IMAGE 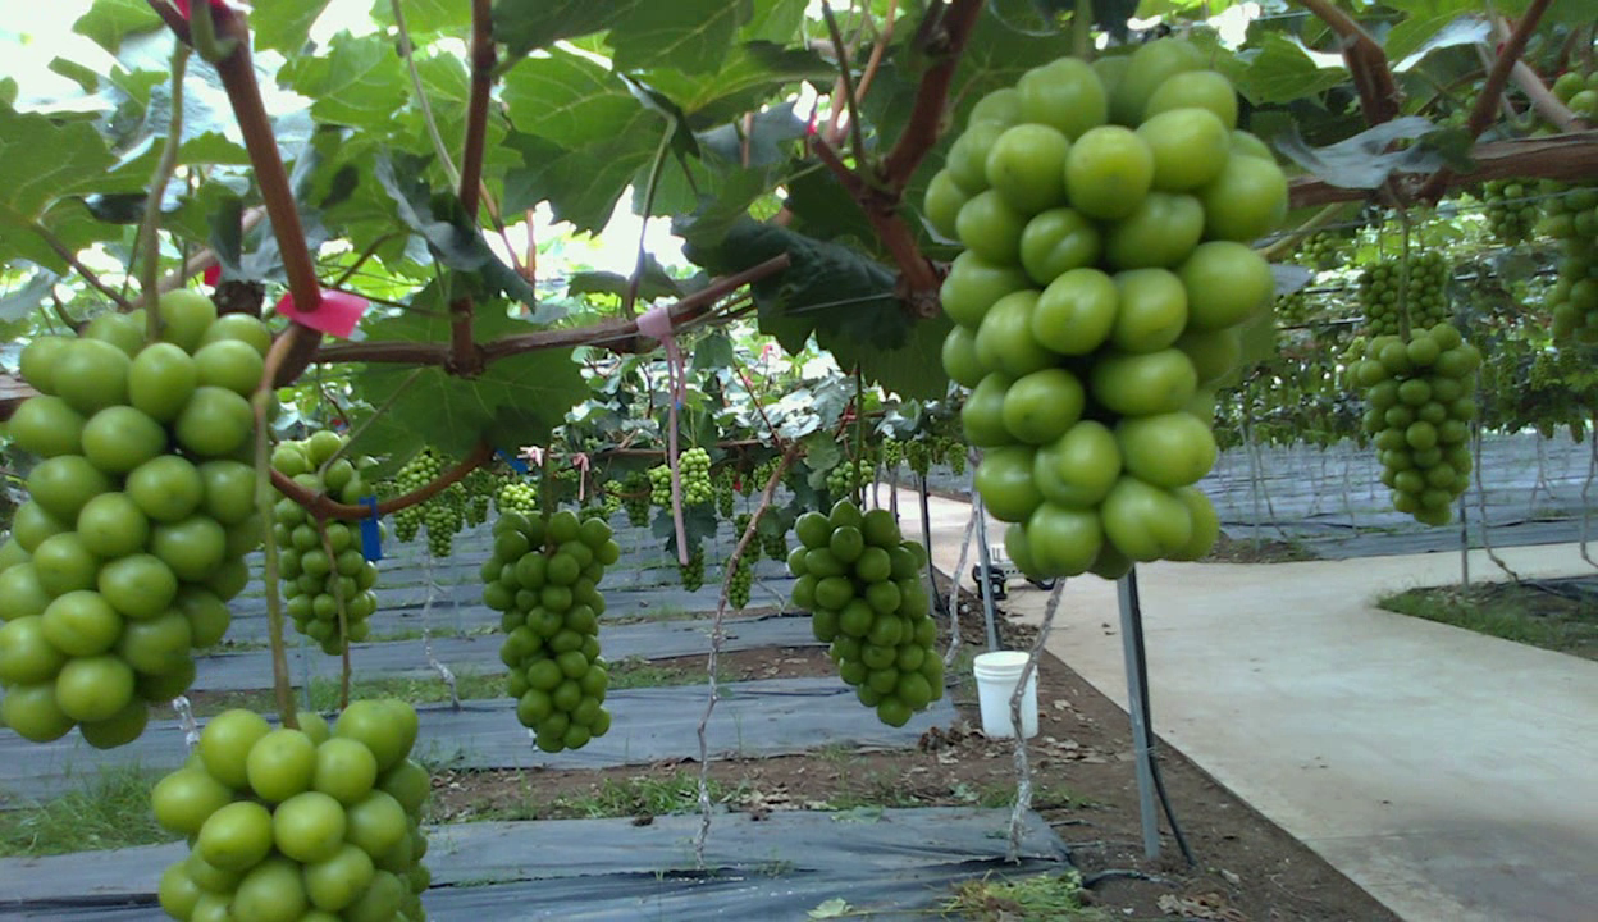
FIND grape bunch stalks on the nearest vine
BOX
[1068,3,1092,59]
[138,41,188,346]
[1383,184,1414,344]
[252,325,301,730]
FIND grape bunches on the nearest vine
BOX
[0,289,273,750]
[923,38,1288,581]
[1347,323,1481,529]
[152,700,433,921]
